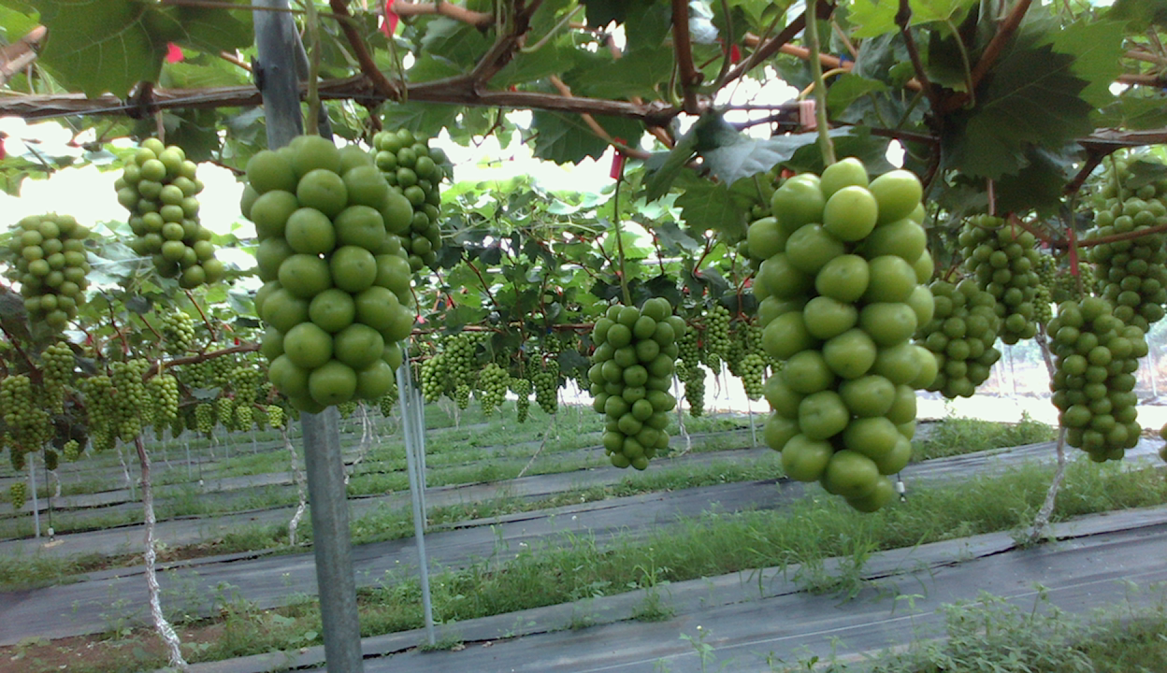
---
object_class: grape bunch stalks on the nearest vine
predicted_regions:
[305,1,321,135]
[805,3,837,164]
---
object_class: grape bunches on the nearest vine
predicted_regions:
[240,134,414,415]
[748,158,939,513]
